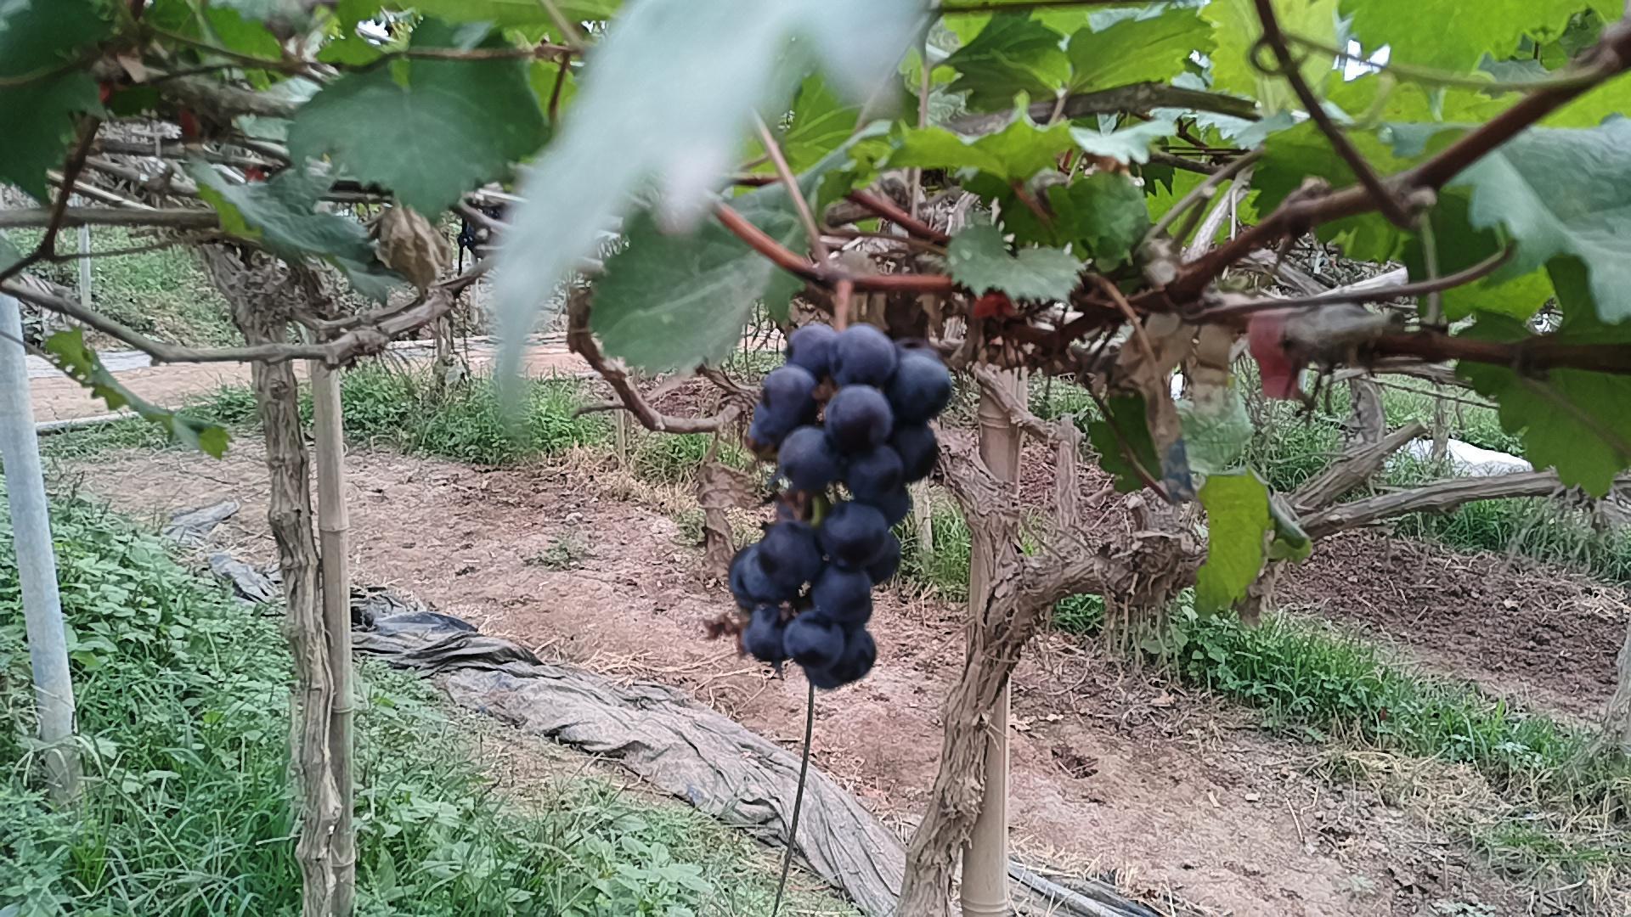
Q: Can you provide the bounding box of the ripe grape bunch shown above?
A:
[728,323,952,689]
